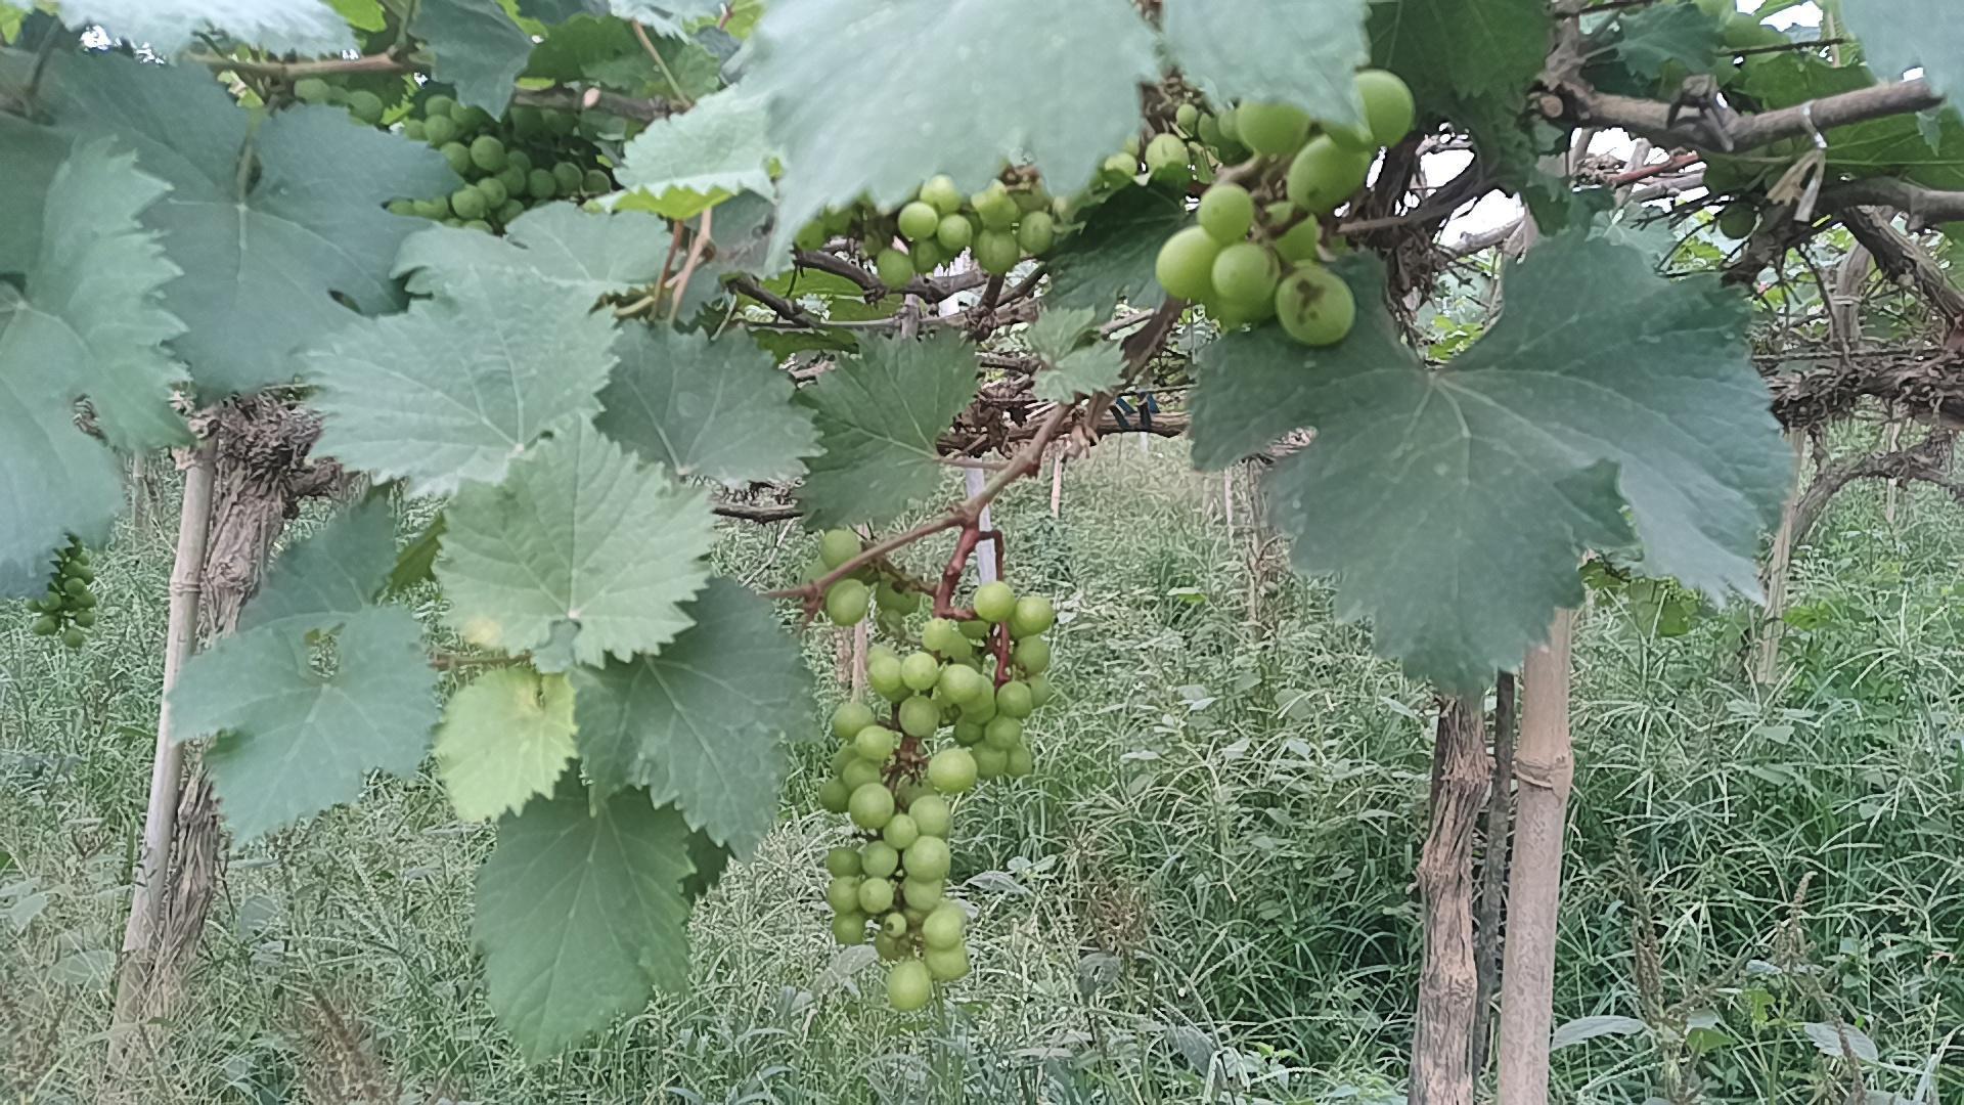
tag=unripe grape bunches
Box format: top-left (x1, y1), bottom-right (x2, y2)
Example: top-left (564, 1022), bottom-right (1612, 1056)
top-left (293, 75), bottom-right (618, 232)
top-left (791, 74), bottom-right (1216, 305)
top-left (797, 530), bottom-right (1055, 1010)
top-left (1156, 71), bottom-right (1414, 345)
top-left (30, 536), bottom-right (97, 647)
